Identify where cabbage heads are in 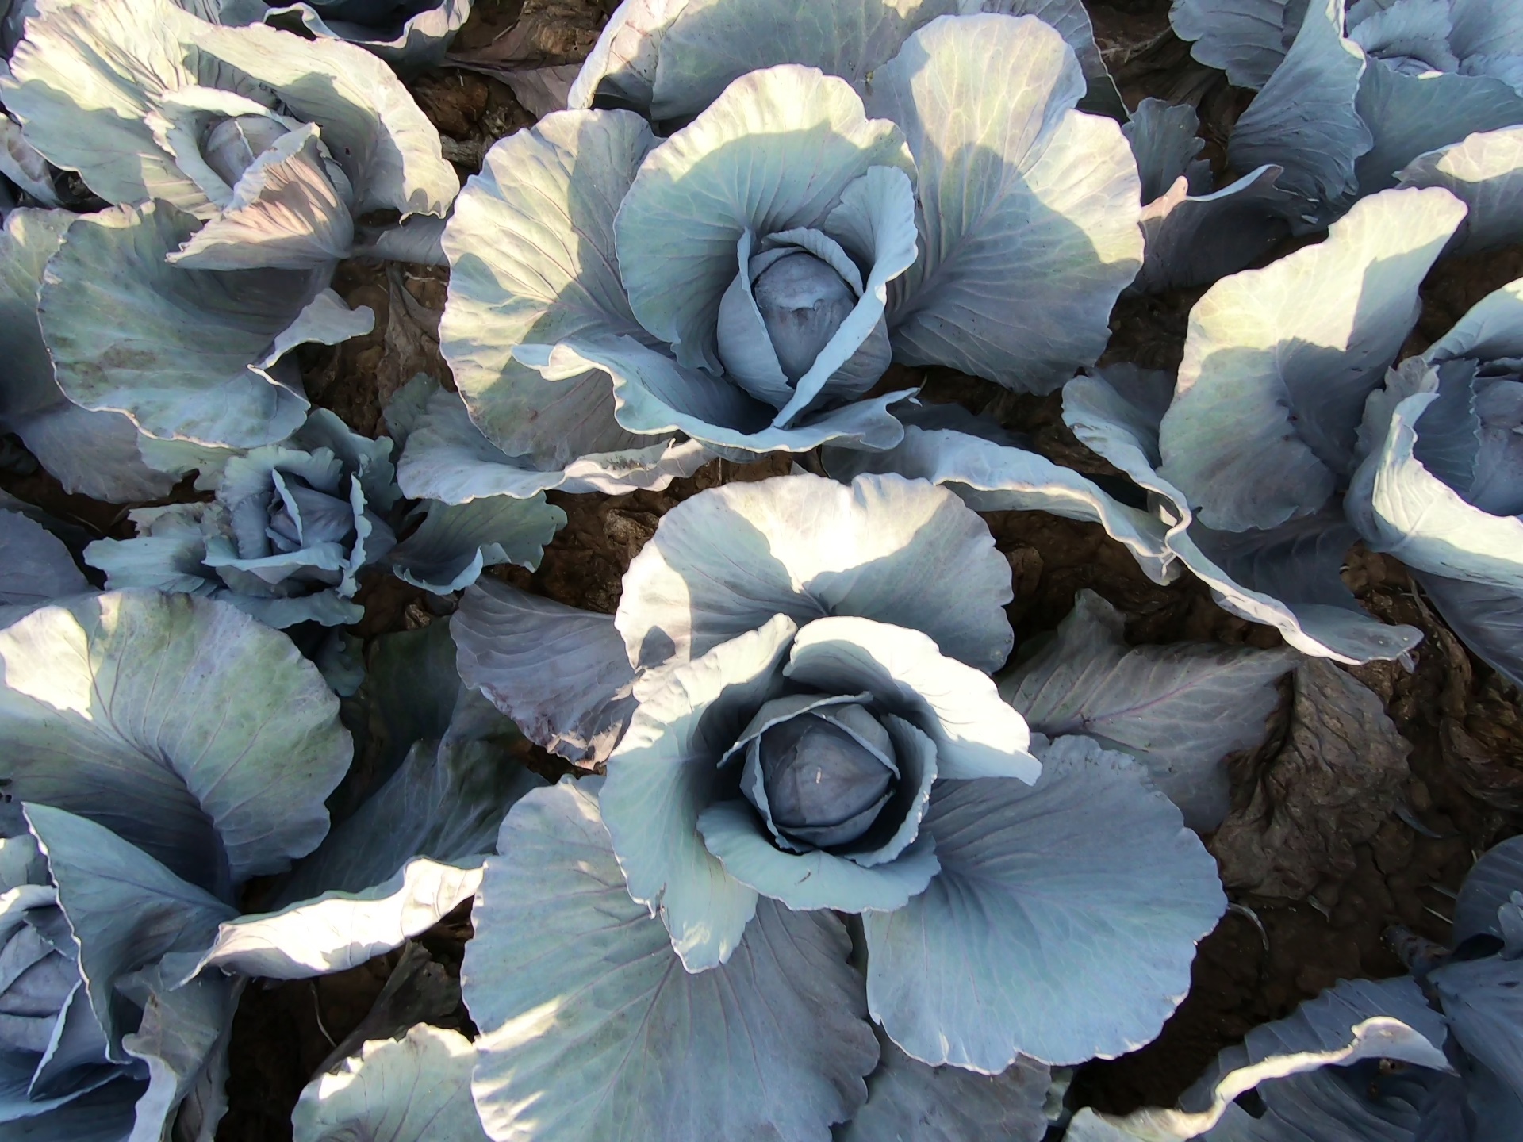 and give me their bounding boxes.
[742,697,895,847]
[1336,55,1448,172]
[259,489,337,553]
[1405,374,1519,538]
[731,249,859,382]
[2,923,155,1059]
[205,113,318,225]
